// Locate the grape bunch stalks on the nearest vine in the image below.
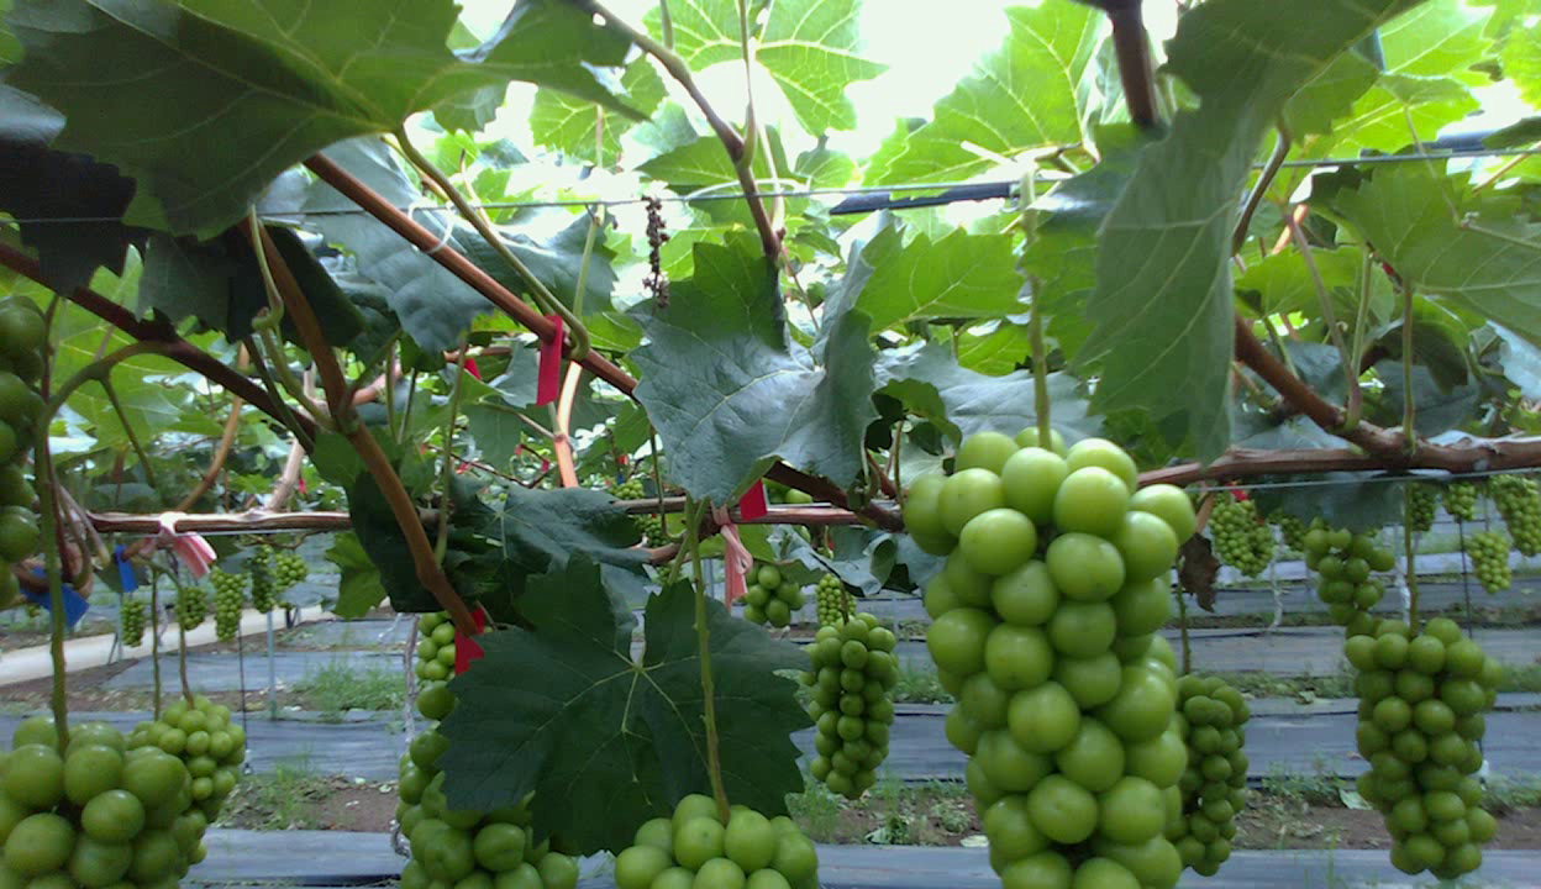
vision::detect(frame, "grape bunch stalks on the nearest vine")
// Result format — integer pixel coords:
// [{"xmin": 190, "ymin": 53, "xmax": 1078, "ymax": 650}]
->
[
  {"xmin": 33, "ymin": 337, "xmax": 149, "ymax": 759},
  {"xmin": 1017, "ymin": 170, "xmax": 1052, "ymax": 451},
  {"xmin": 1404, "ymin": 480, "xmax": 1419, "ymax": 640},
  {"xmin": 685, "ymin": 493, "xmax": 732, "ymax": 826}
]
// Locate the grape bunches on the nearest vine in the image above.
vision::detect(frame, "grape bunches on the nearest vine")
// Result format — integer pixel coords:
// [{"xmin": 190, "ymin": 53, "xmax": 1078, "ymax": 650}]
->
[
  {"xmin": 1343, "ymin": 617, "xmax": 1501, "ymax": 880},
  {"xmin": 904, "ymin": 427, "xmax": 1199, "ymax": 888},
  {"xmin": 0, "ymin": 715, "xmax": 196, "ymax": 888},
  {"xmin": 396, "ymin": 680, "xmax": 582, "ymax": 888},
  {"xmin": 614, "ymin": 795, "xmax": 820, "ymax": 888}
]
